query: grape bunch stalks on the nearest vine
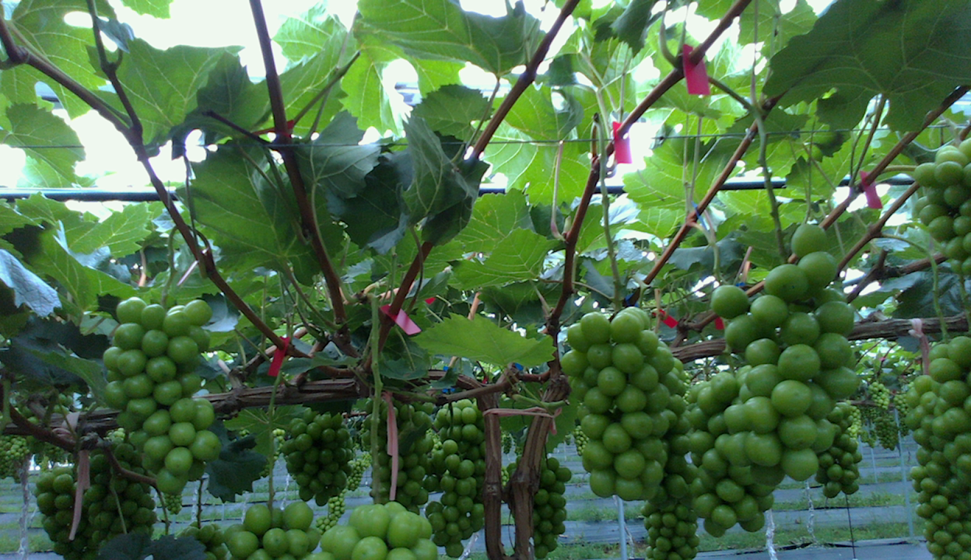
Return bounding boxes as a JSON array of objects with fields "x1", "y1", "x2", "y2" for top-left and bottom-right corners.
[
  {"x1": 757, "y1": 119, "x2": 789, "y2": 264},
  {"x1": 160, "y1": 226, "x2": 177, "y2": 310},
  {"x1": 366, "y1": 291, "x2": 381, "y2": 504},
  {"x1": 591, "y1": 121, "x2": 626, "y2": 314},
  {"x1": 875, "y1": 231, "x2": 948, "y2": 342},
  {"x1": 268, "y1": 373, "x2": 281, "y2": 529}
]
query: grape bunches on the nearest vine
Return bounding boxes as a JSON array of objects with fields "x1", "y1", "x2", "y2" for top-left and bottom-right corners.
[
  {"x1": 912, "y1": 137, "x2": 970, "y2": 277},
  {"x1": 682, "y1": 372, "x2": 774, "y2": 538},
  {"x1": 224, "y1": 500, "x2": 318, "y2": 559},
  {"x1": 304, "y1": 502, "x2": 439, "y2": 559},
  {"x1": 710, "y1": 224, "x2": 859, "y2": 487},
  {"x1": 905, "y1": 336, "x2": 970, "y2": 507},
  {"x1": 103, "y1": 296, "x2": 220, "y2": 495},
  {"x1": 562, "y1": 307, "x2": 690, "y2": 505}
]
